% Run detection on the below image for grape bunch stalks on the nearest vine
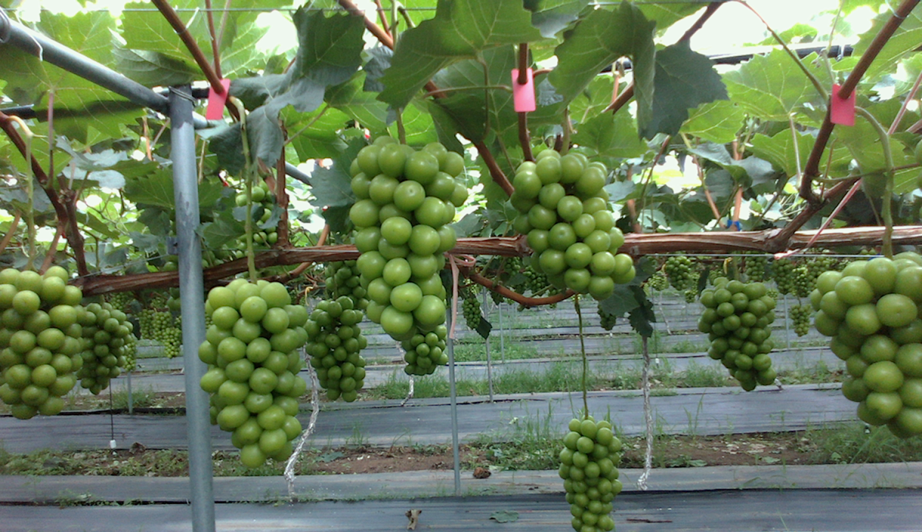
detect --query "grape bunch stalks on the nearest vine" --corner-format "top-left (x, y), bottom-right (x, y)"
top-left (559, 114), bottom-right (570, 157)
top-left (5, 116), bottom-right (34, 270)
top-left (853, 106), bottom-right (895, 260)
top-left (229, 96), bottom-right (257, 284)
top-left (391, 4), bottom-right (406, 145)
top-left (575, 295), bottom-right (588, 420)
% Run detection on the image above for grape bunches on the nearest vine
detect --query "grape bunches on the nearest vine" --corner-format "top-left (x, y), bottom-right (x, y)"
top-left (349, 136), bottom-right (467, 340)
top-left (559, 415), bottom-right (621, 531)
top-left (810, 251), bottom-right (921, 439)
top-left (511, 149), bottom-right (635, 301)
top-left (0, 266), bottom-right (85, 420)
top-left (198, 279), bottom-right (309, 469)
